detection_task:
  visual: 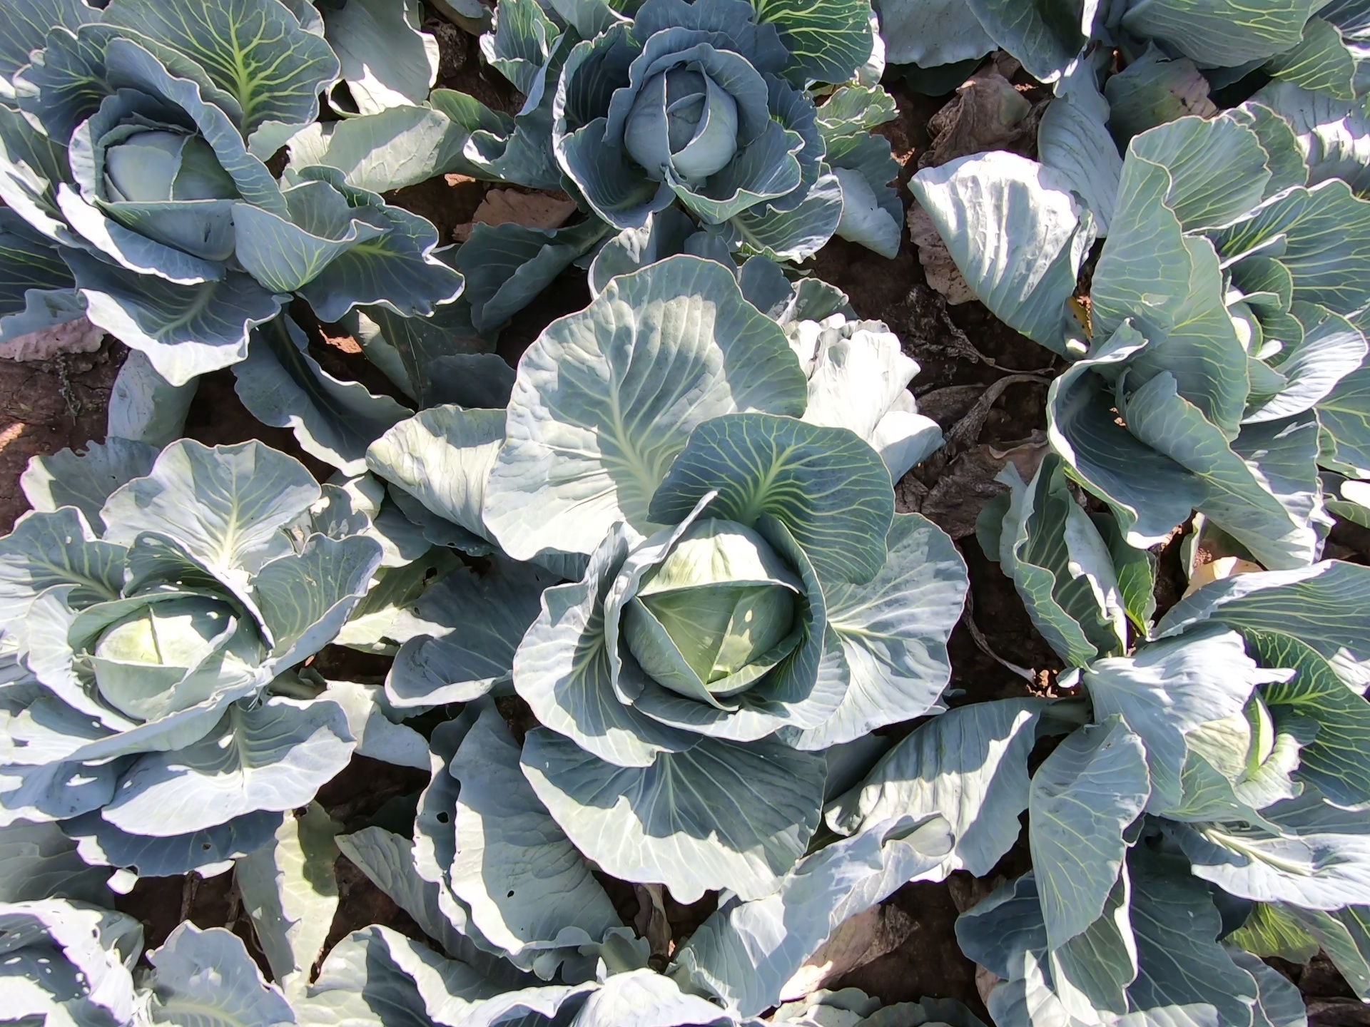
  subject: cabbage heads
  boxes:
[631,521,797,688]
[625,66,741,178]
[1122,648,1273,787]
[107,128,234,230]
[97,596,247,717]
[1149,279,1259,382]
